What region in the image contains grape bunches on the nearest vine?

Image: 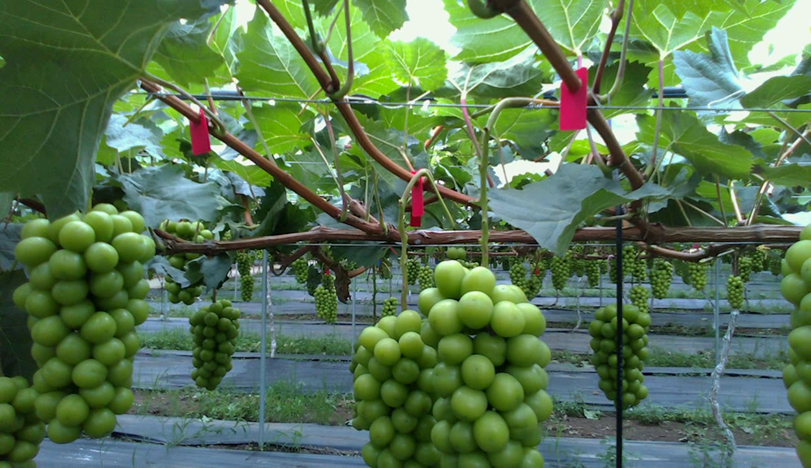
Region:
[416,260,553,467]
[353,308,441,467]
[0,376,45,467]
[780,224,810,467]
[13,203,156,444]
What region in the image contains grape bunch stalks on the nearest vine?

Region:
[398,168,431,311]
[480,97,559,268]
